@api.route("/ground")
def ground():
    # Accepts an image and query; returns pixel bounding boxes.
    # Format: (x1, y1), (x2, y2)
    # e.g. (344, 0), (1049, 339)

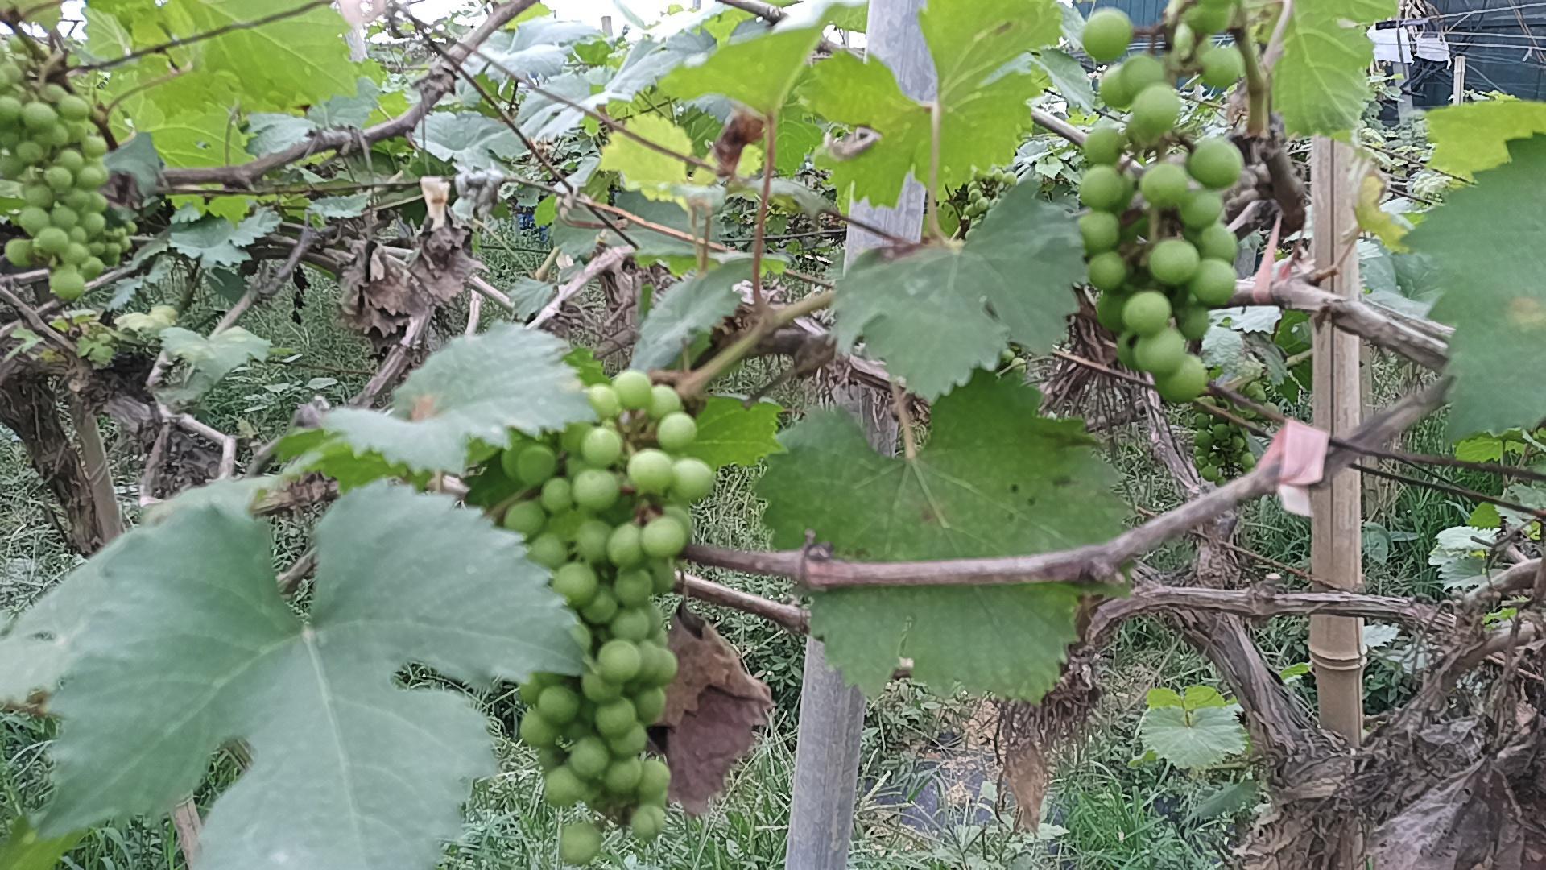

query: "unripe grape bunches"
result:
(502, 370), (713, 864)
(0, 6), (144, 299)
(963, 169), (1017, 217)
(1233, 381), (1279, 415)
(1077, 0), (1245, 402)
(1193, 396), (1257, 488)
